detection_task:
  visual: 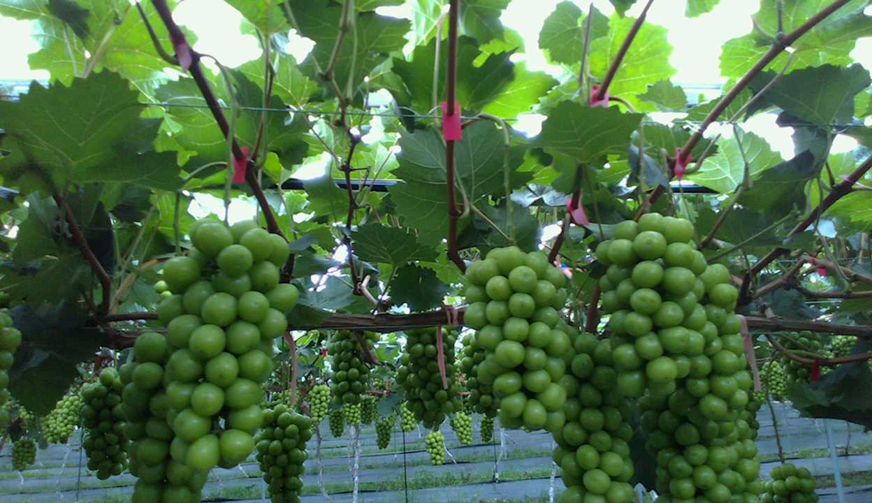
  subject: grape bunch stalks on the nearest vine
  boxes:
[609,96,651,212]
[565,214,579,330]
[198,54,240,224]
[659,148,673,214]
[462,113,516,246]
[173,162,223,255]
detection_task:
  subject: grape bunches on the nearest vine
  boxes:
[553,328,634,502]
[636,391,763,502]
[597,213,707,398]
[463,247,569,434]
[675,263,751,425]
[158,219,298,472]
[118,333,207,502]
